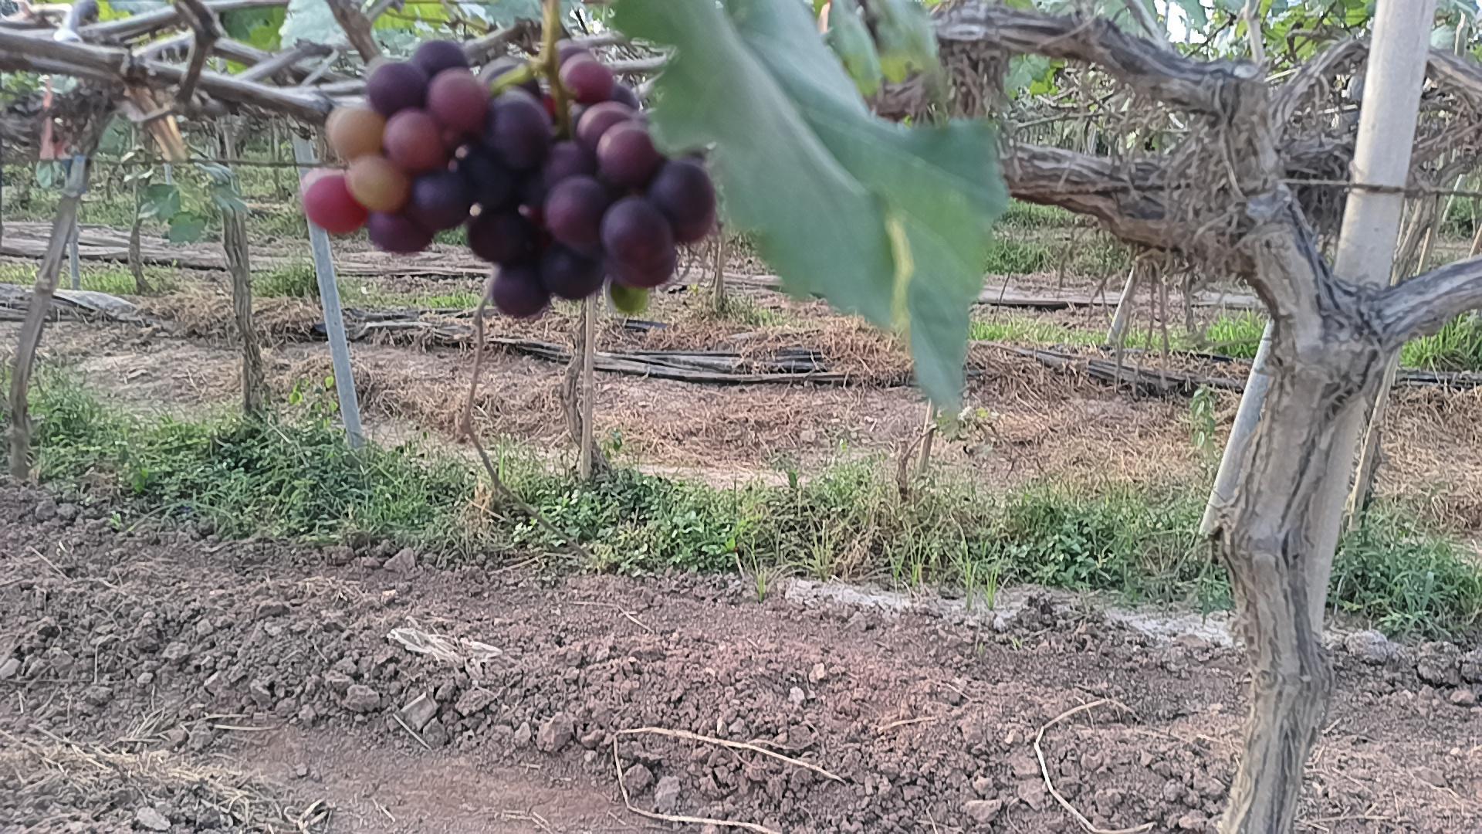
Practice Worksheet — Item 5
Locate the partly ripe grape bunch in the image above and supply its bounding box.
[306,40,715,317]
